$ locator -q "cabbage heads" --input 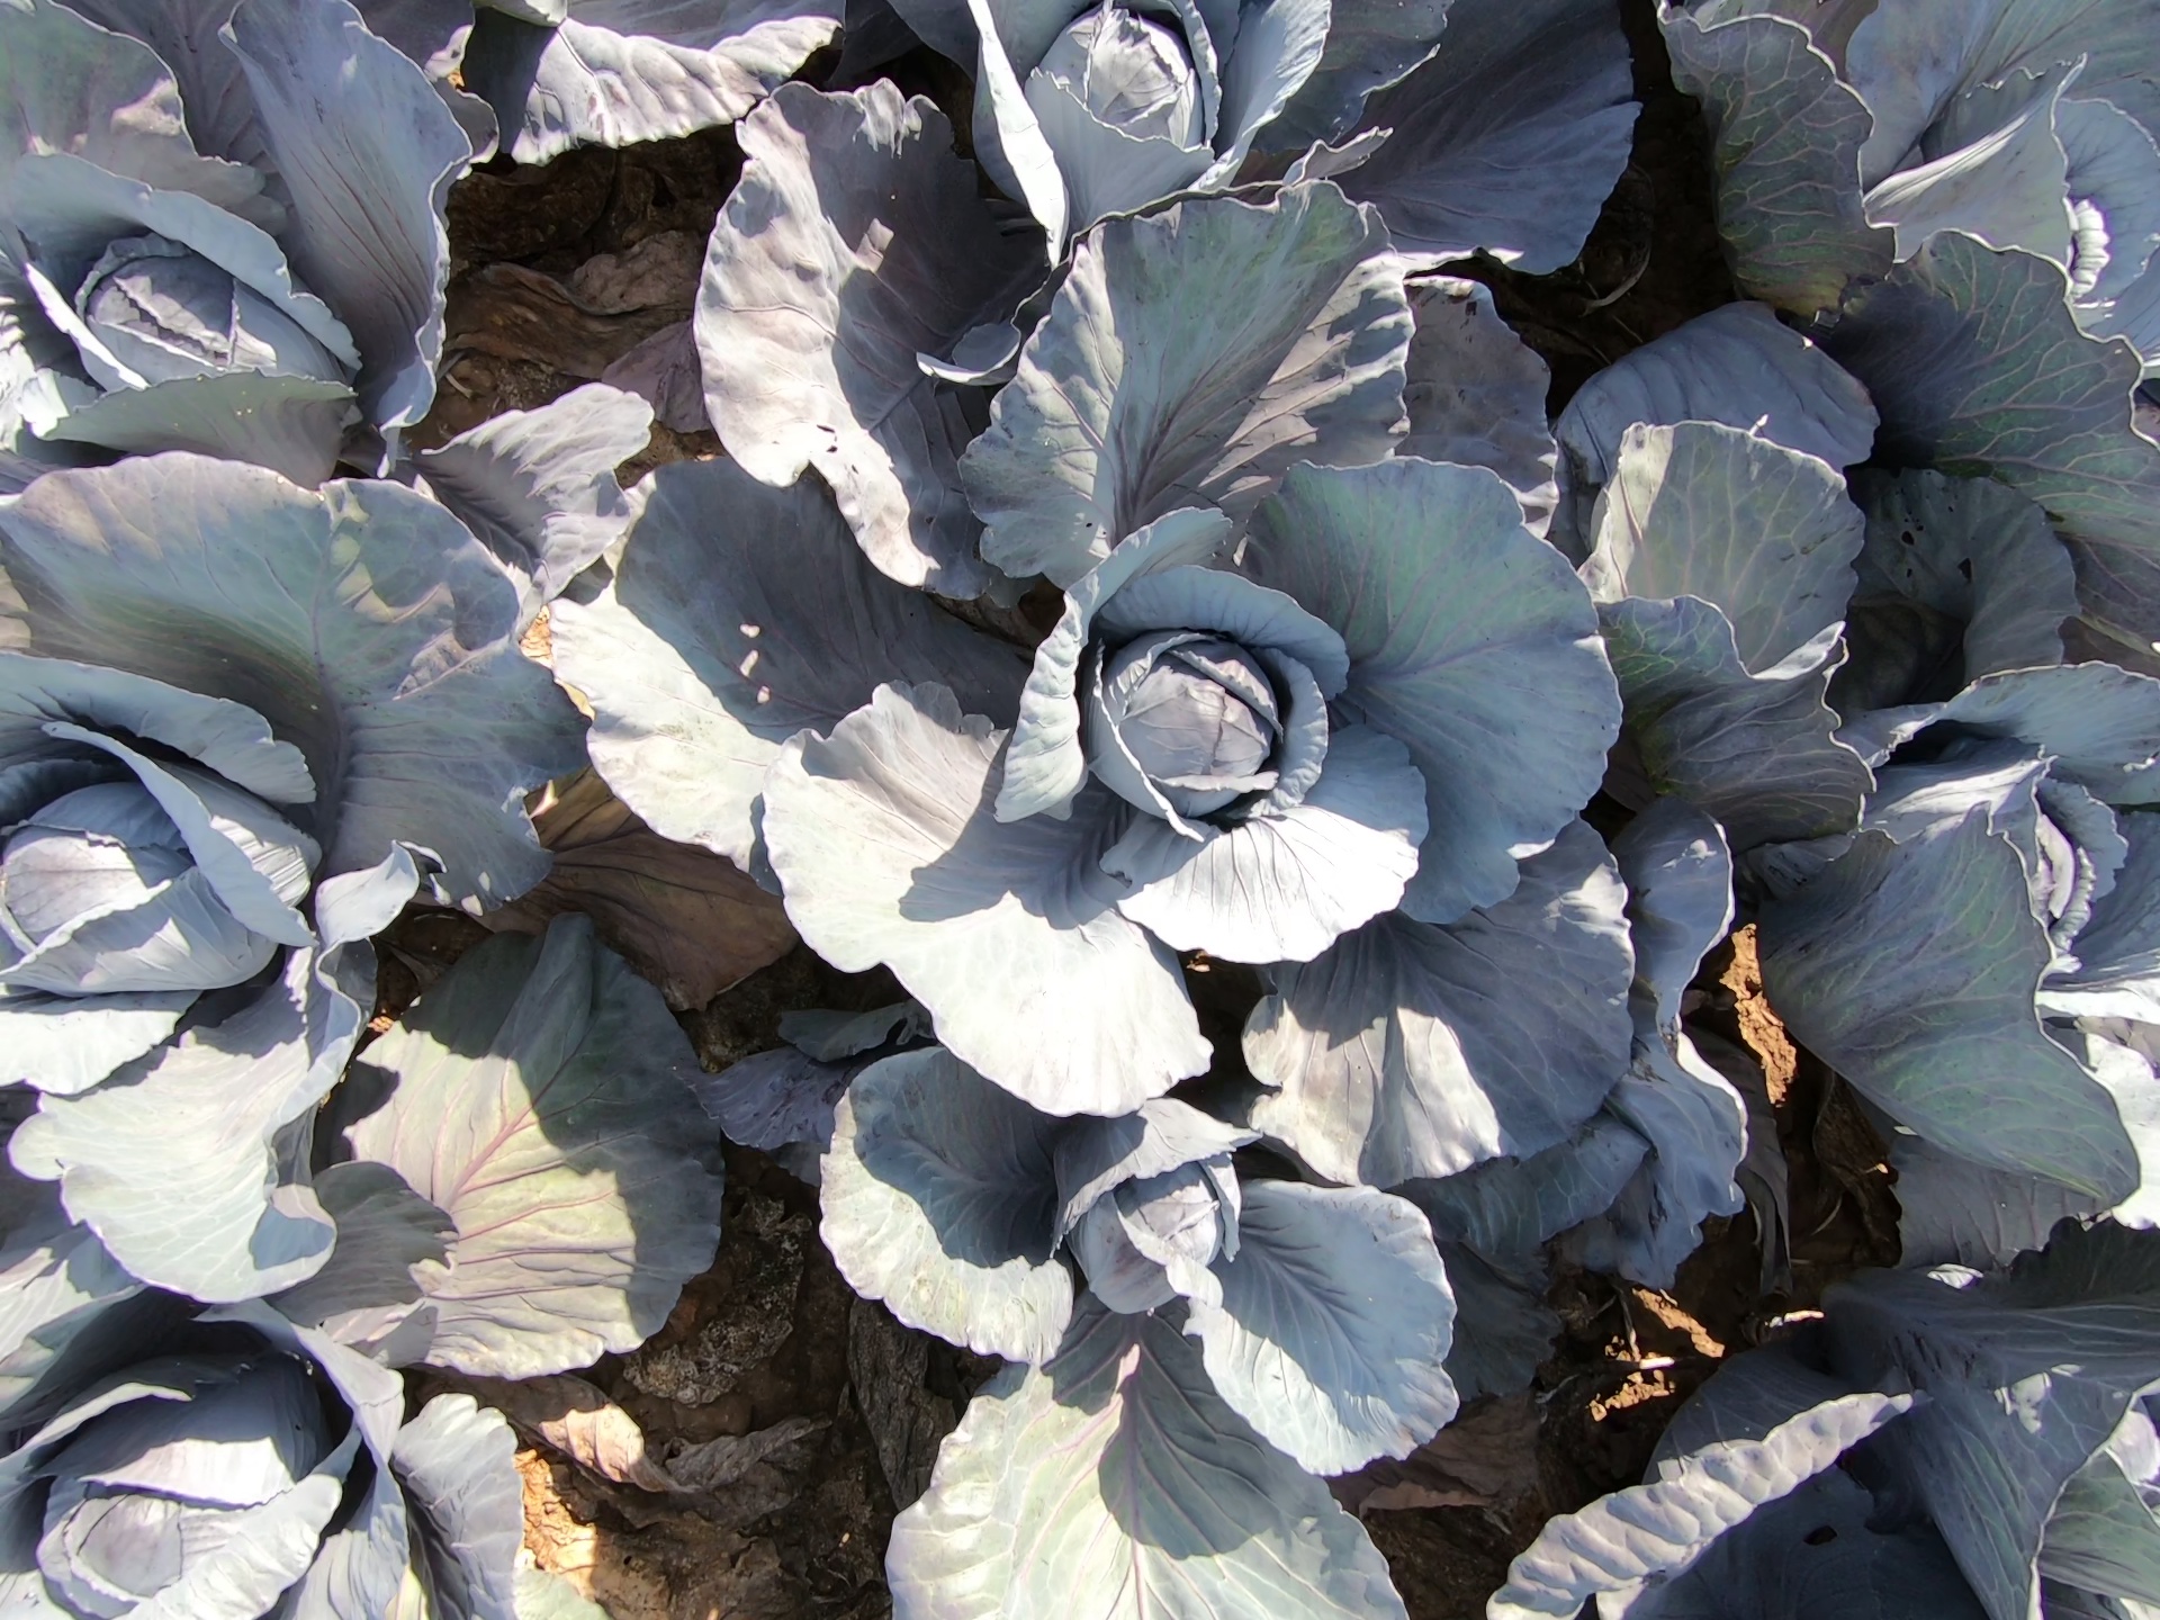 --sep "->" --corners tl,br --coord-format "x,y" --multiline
1882,169 -> 2080,319
38,1379 -> 312,1619
4,785 -> 258,963
1073,1111 -> 1239,1305
1045,10 -> 1215,190
1982,1370 -> 2155,1539
75,234 -> 324,404
1898,795 -> 2072,937
1097,643 -> 1275,816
